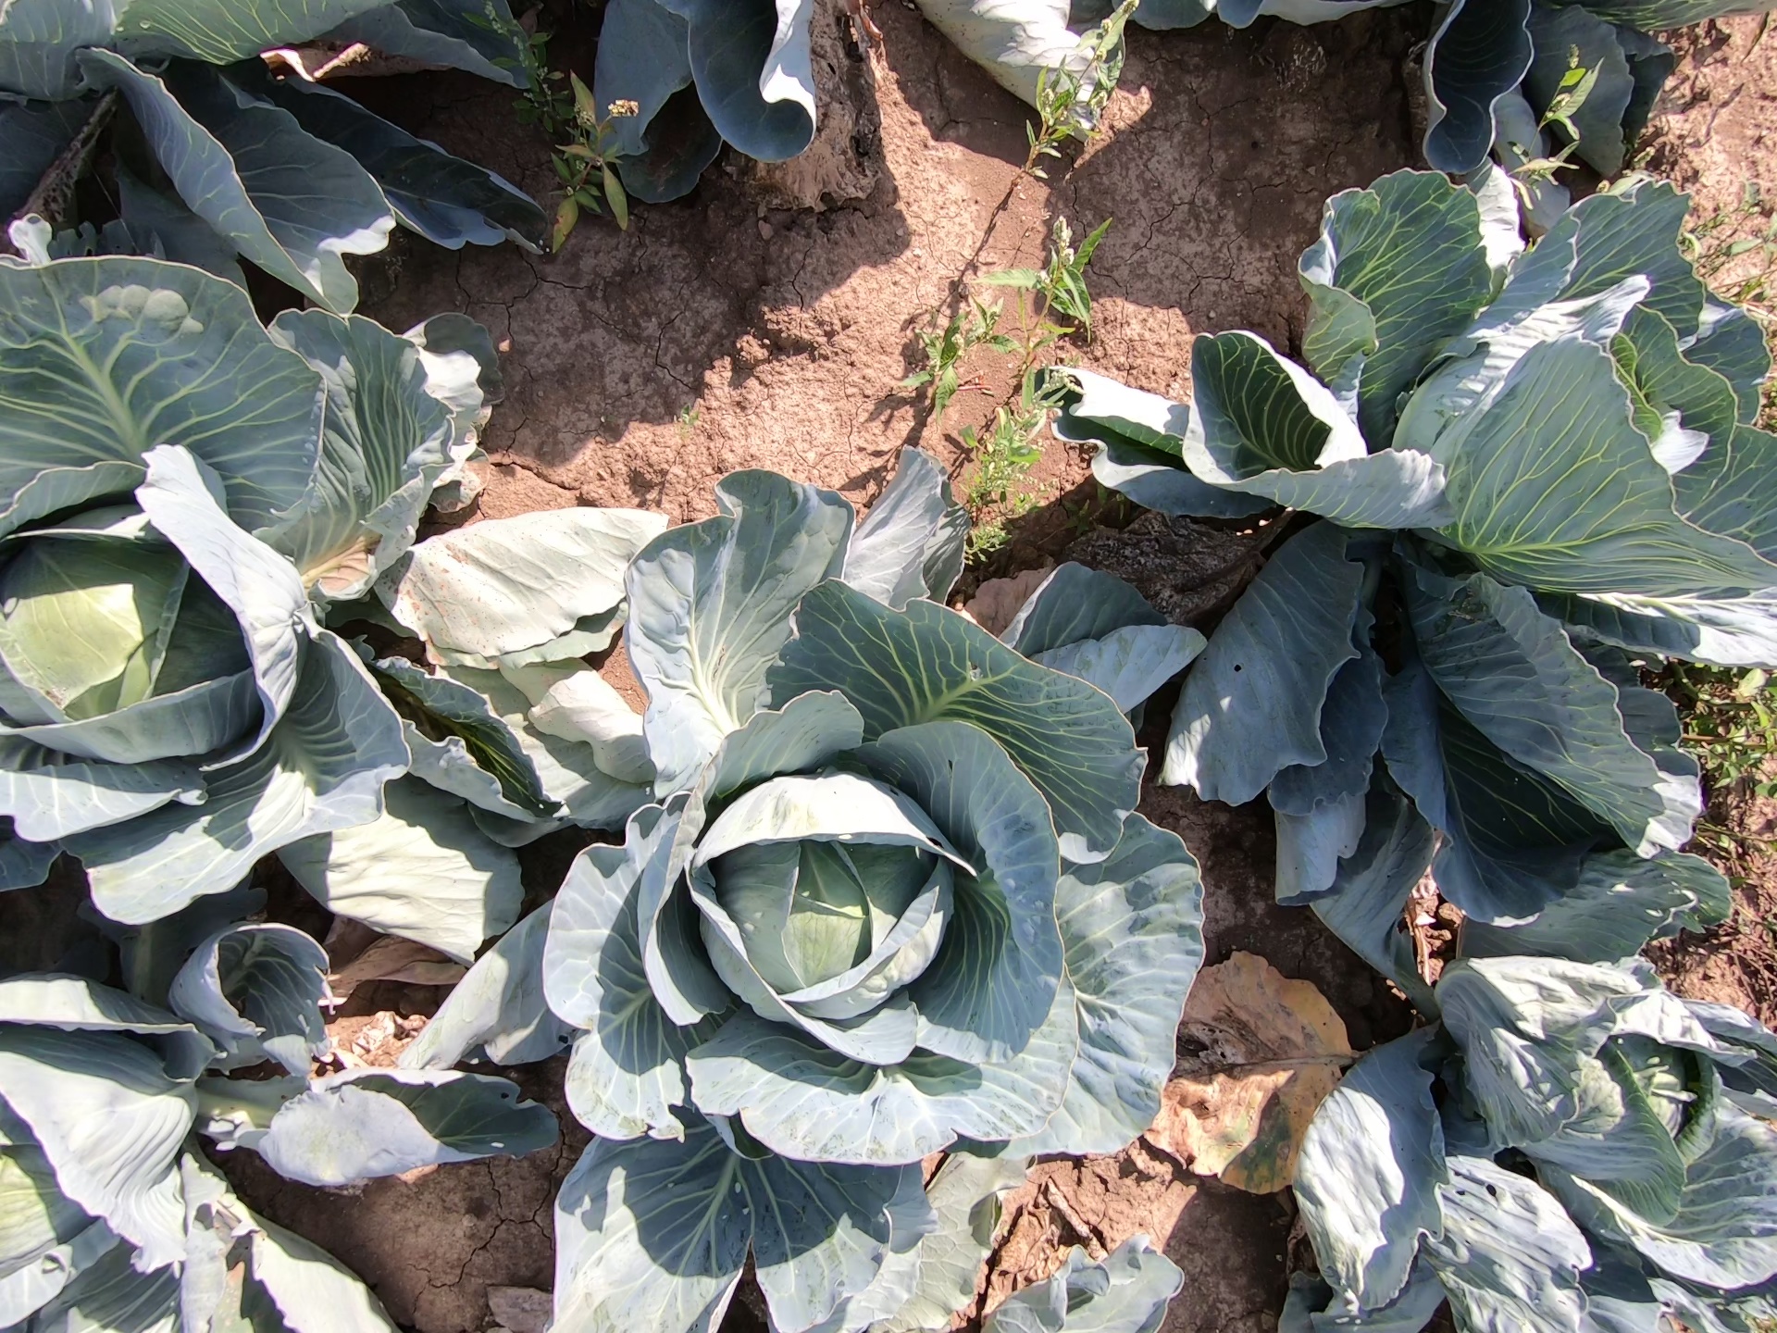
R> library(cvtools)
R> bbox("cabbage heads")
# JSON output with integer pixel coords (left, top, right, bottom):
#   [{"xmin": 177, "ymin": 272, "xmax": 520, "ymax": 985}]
[
  {"xmin": 701, "ymin": 790, "xmax": 960, "ymax": 1021},
  {"xmin": 4, "ymin": 514, "xmax": 256, "ymax": 760},
  {"xmin": 4, "ymin": 1033, "xmax": 150, "ymax": 1277},
  {"xmin": 1521, "ymin": 1009, "xmax": 1692, "ymax": 1164}
]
